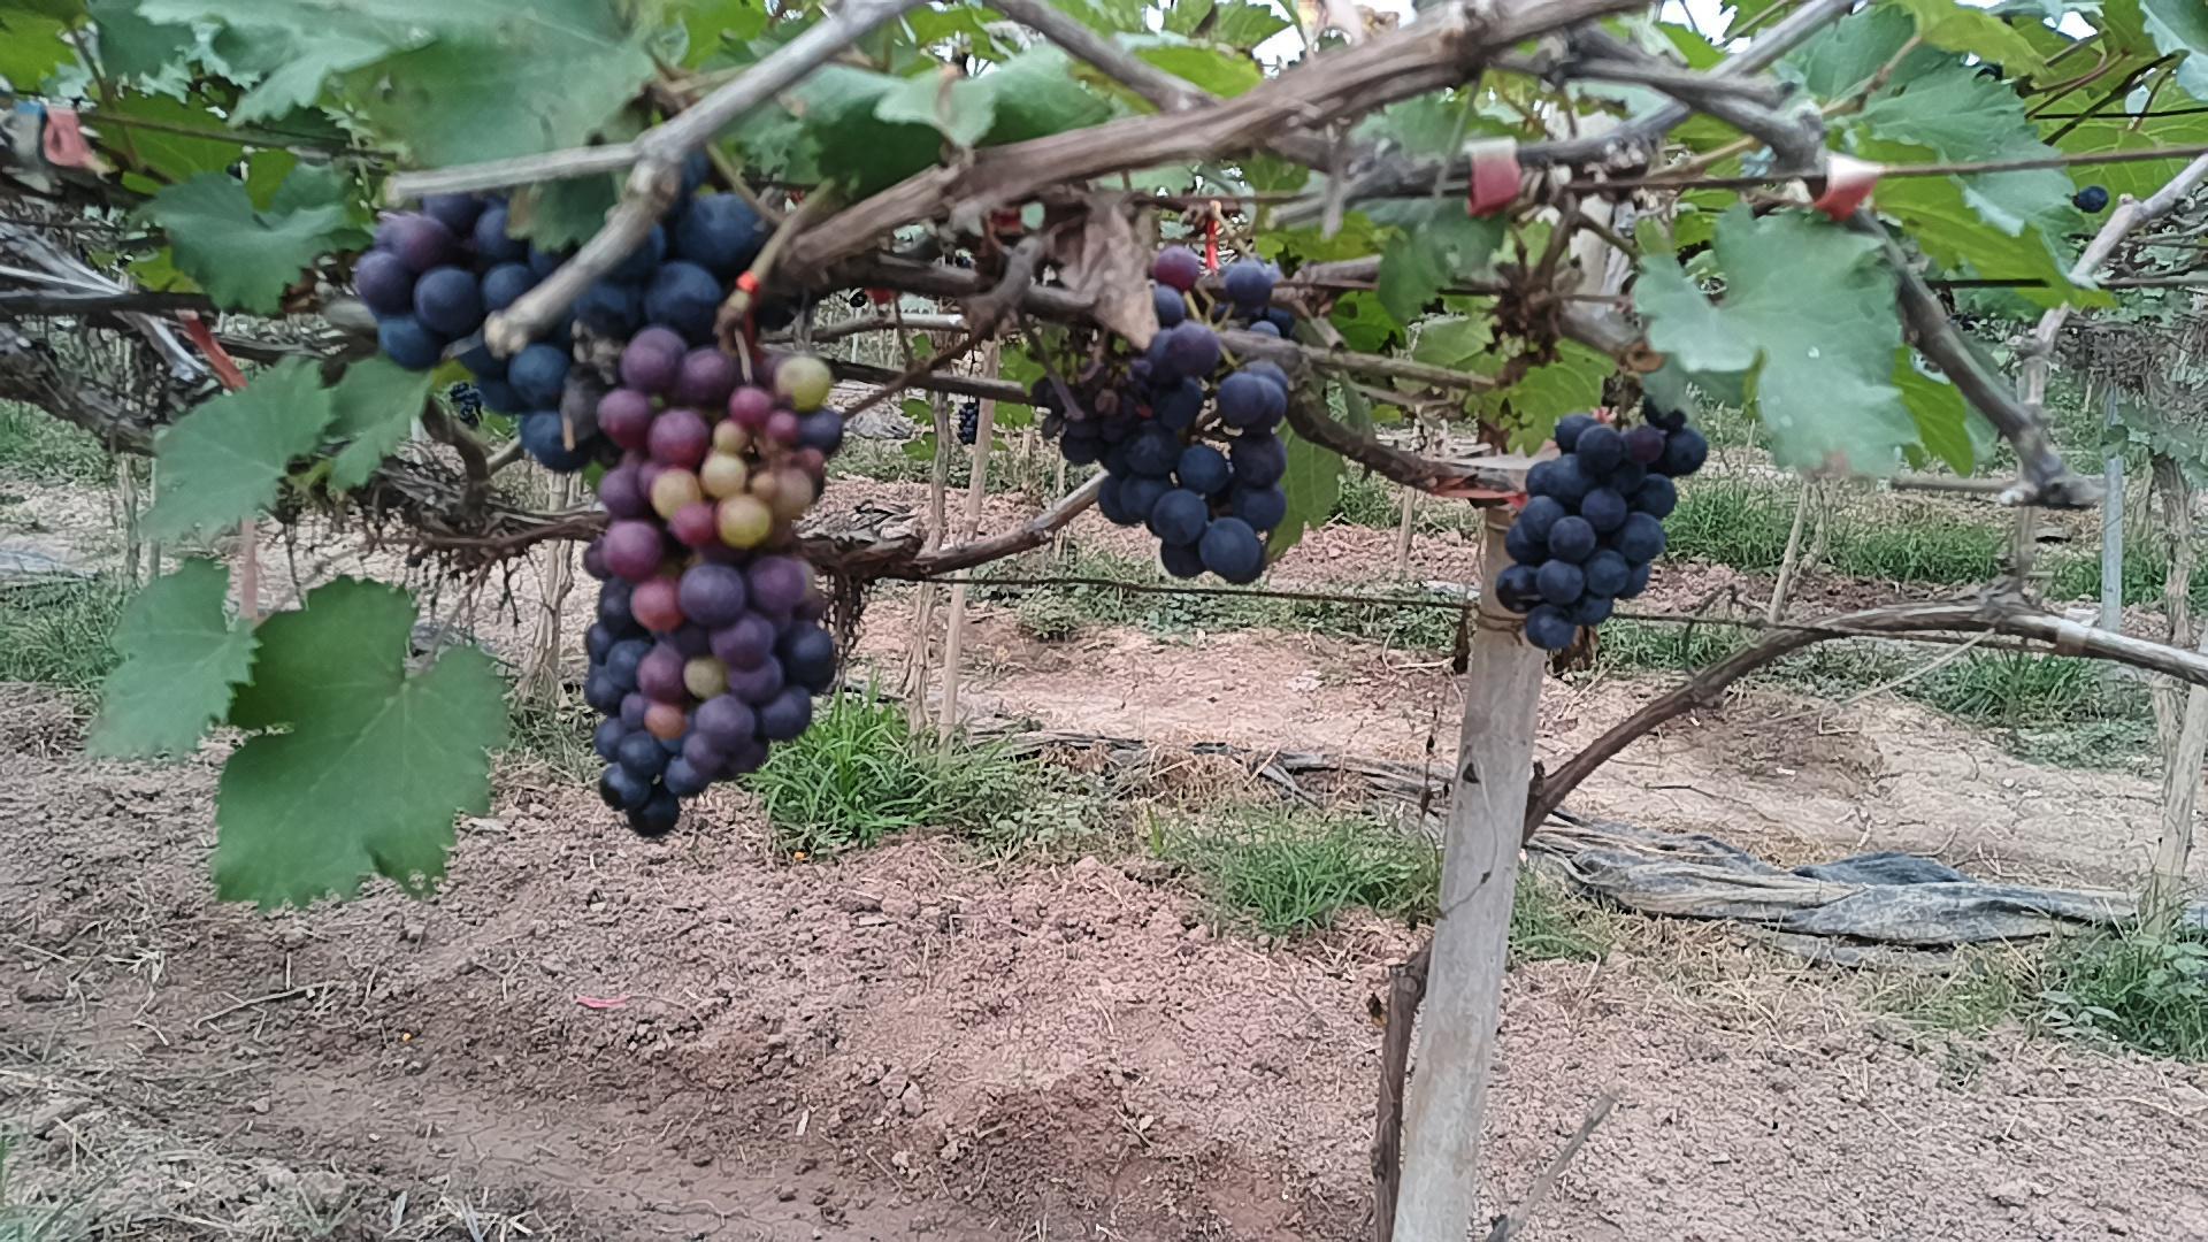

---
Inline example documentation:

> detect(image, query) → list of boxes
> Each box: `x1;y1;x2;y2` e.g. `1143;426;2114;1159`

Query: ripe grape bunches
952;398;981;445
2069;184;2121;217
1061;246;1293;583
446;379;486;429
353;139;799;474
1495;400;1707;651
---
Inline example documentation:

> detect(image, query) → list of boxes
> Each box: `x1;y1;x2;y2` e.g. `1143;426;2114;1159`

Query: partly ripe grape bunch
582;327;841;835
